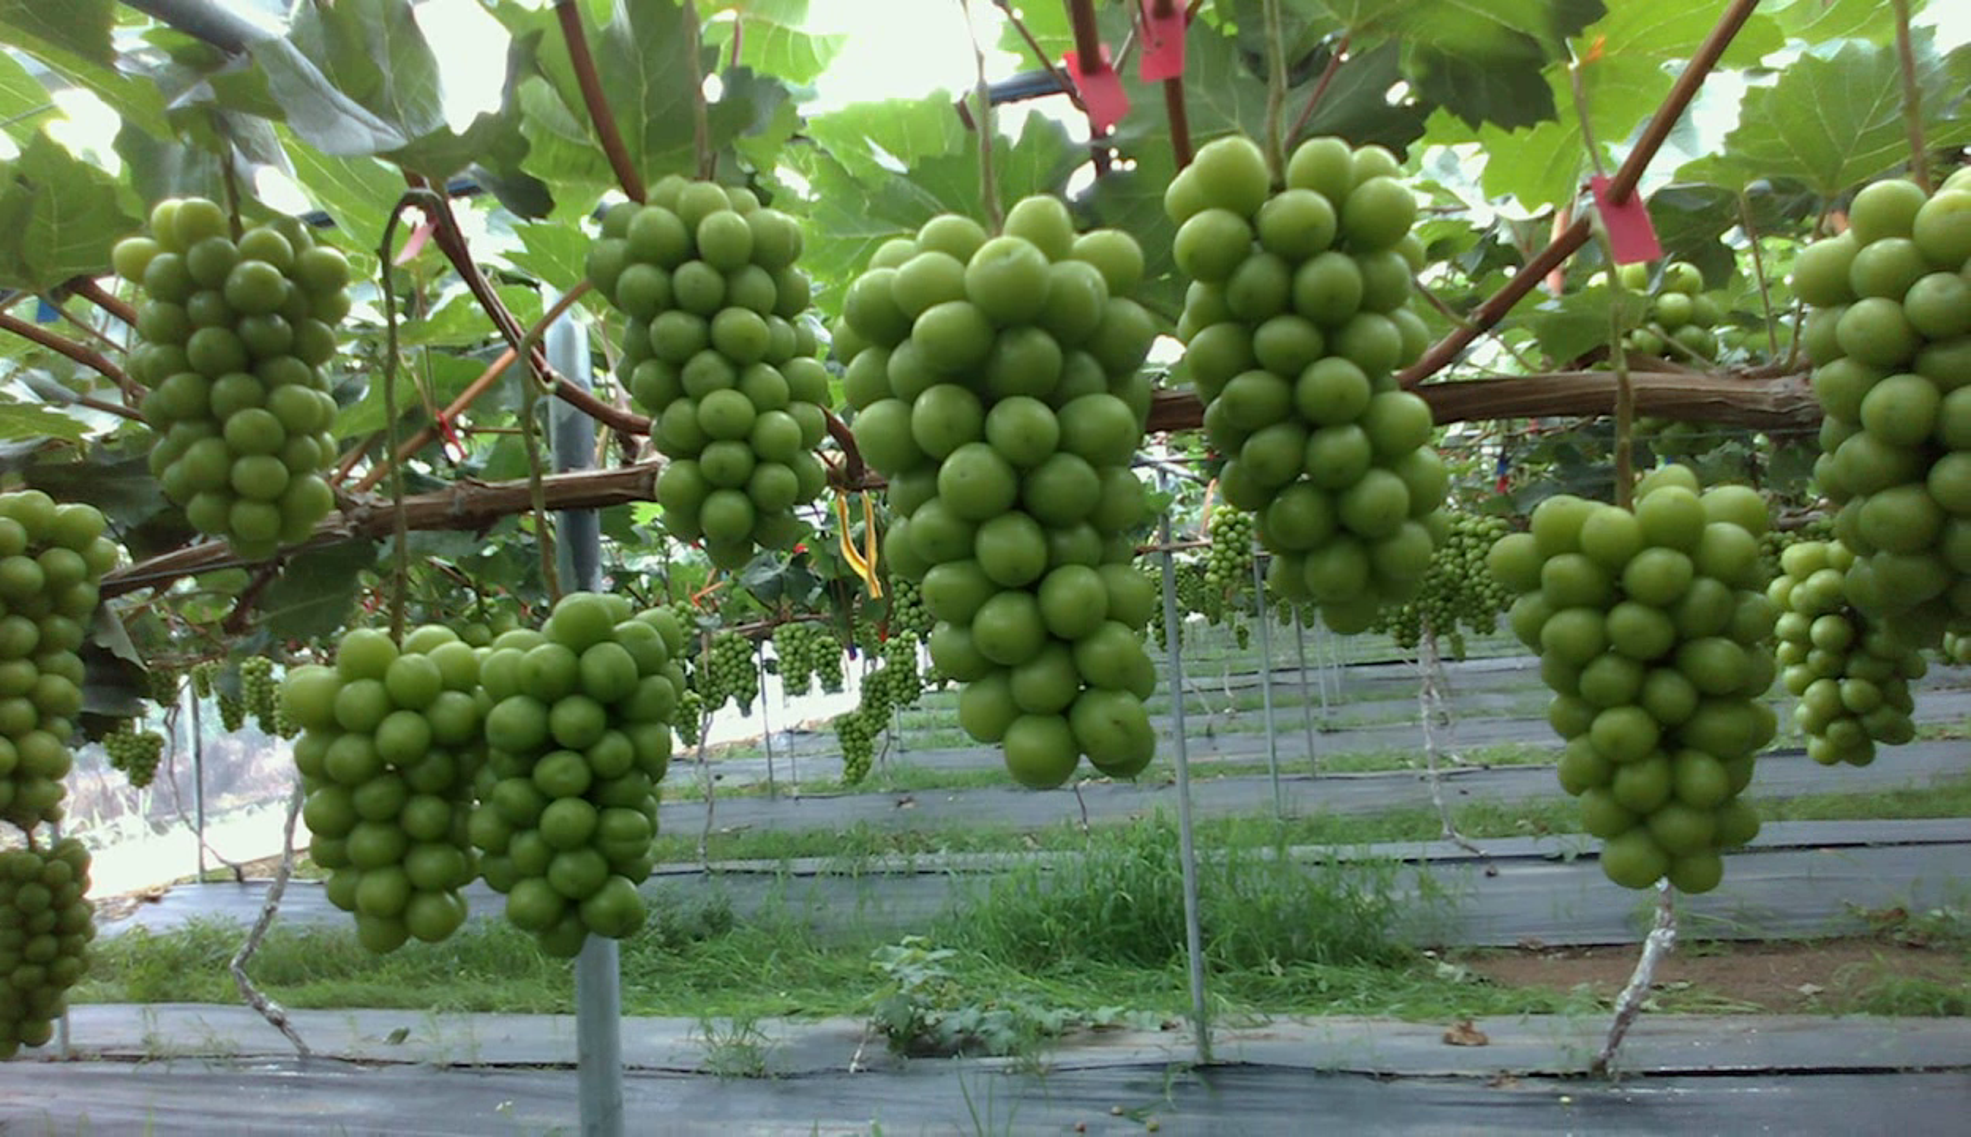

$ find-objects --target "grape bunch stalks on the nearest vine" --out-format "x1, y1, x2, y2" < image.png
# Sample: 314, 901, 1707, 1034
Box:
1586, 204, 1635, 507
515, 283, 588, 603
971, 38, 1000, 234
221, 158, 242, 242
1895, 0, 1928, 191
379, 188, 458, 640
685, 0, 711, 175
1262, 0, 1292, 188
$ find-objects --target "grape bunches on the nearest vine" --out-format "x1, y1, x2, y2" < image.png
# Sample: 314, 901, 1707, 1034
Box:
467, 591, 685, 957
1166, 137, 1448, 633
591, 174, 829, 573
280, 624, 488, 957
835, 194, 1158, 793
1489, 464, 1777, 892
112, 197, 355, 564
1794, 164, 1969, 649
0, 490, 117, 827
